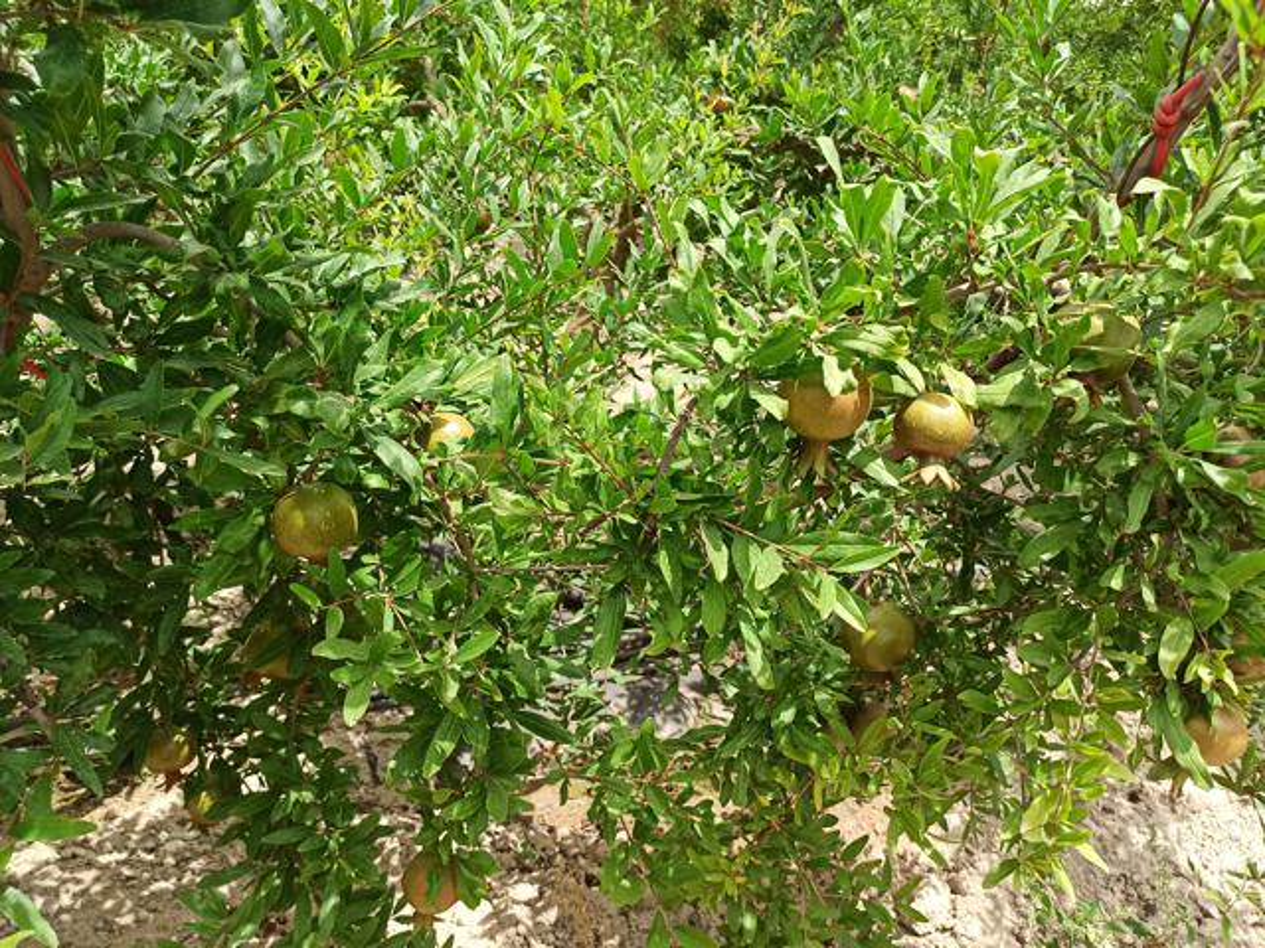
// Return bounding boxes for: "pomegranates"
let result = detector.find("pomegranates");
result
[146,727,198,792]
[893,391,972,492]
[243,630,287,685]
[848,707,899,743]
[779,377,872,482]
[1146,709,1249,812]
[271,482,360,567]
[401,851,459,928]
[1055,298,1142,387]
[848,602,917,683]
[1229,630,1265,677]
[188,790,217,829]
[425,413,476,452]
